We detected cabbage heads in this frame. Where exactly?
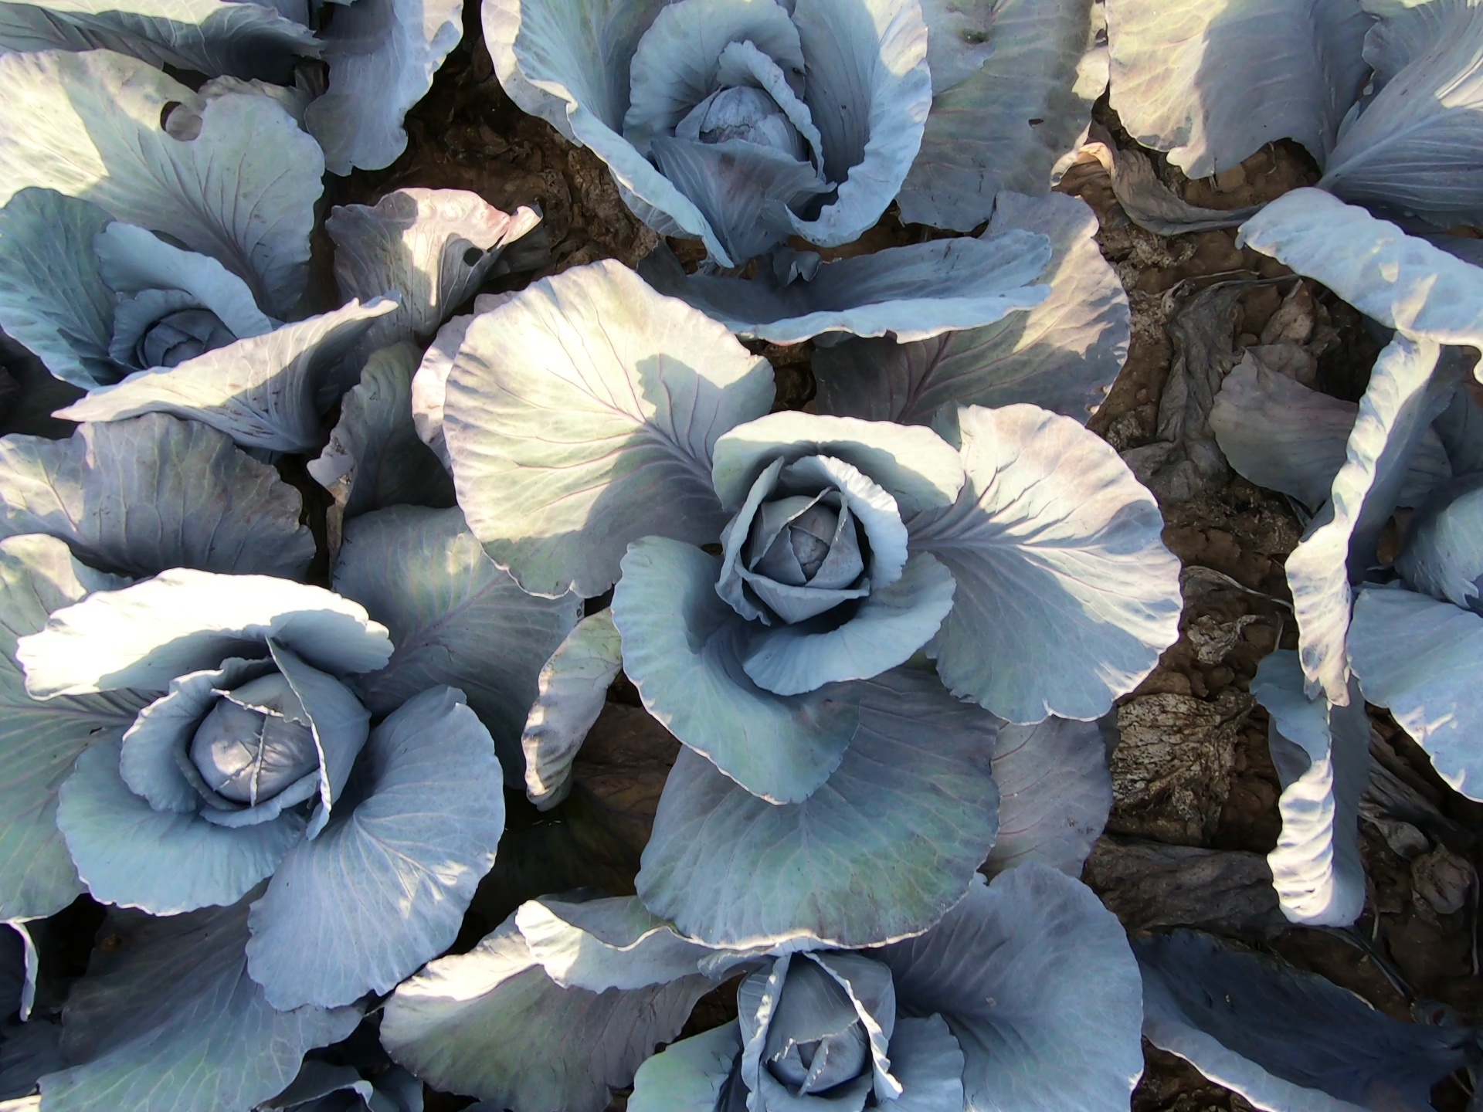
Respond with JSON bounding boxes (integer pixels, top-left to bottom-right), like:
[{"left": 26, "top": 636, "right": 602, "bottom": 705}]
[
  {"left": 765, "top": 958, "right": 878, "bottom": 1093},
  {"left": 193, "top": 680, "right": 340, "bottom": 804},
  {"left": 134, "top": 304, "right": 281, "bottom": 401},
  {"left": 752, "top": 498, "right": 863, "bottom": 598},
  {"left": 684, "top": 83, "right": 804, "bottom": 208}
]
